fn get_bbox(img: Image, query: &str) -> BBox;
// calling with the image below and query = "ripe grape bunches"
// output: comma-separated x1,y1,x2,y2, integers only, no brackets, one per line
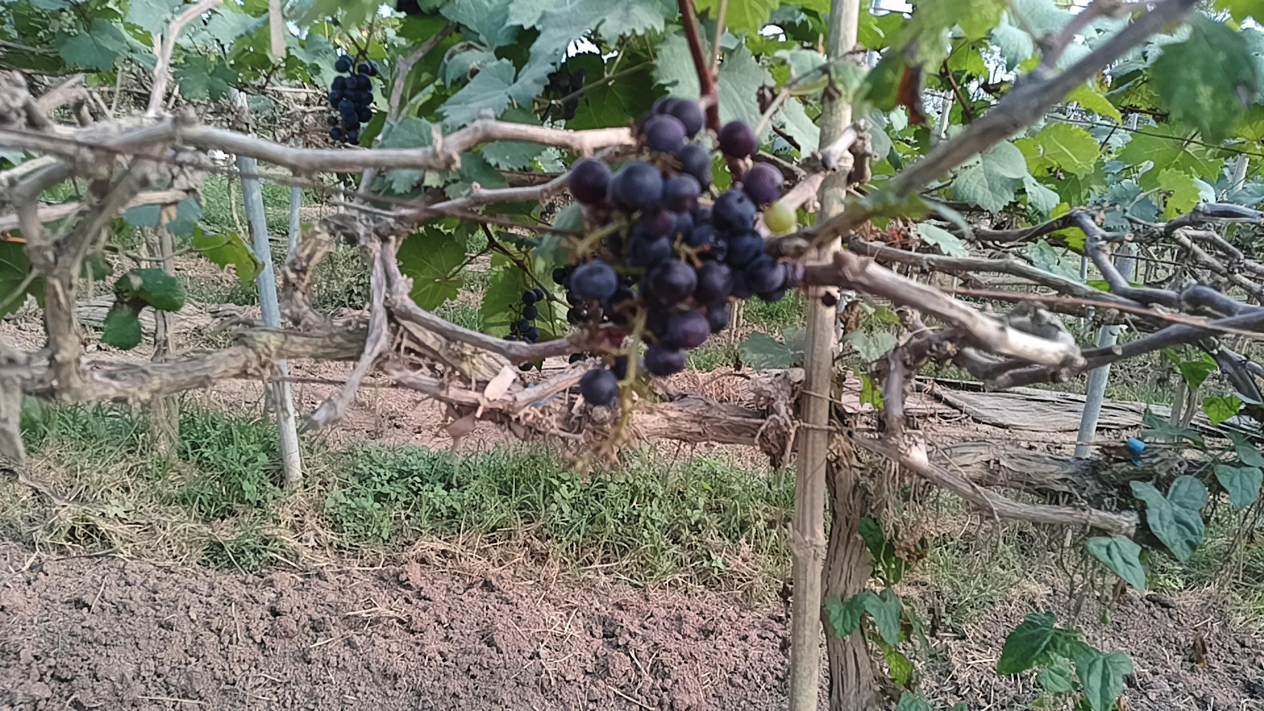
328,55,379,148
503,288,544,343
572,96,801,405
